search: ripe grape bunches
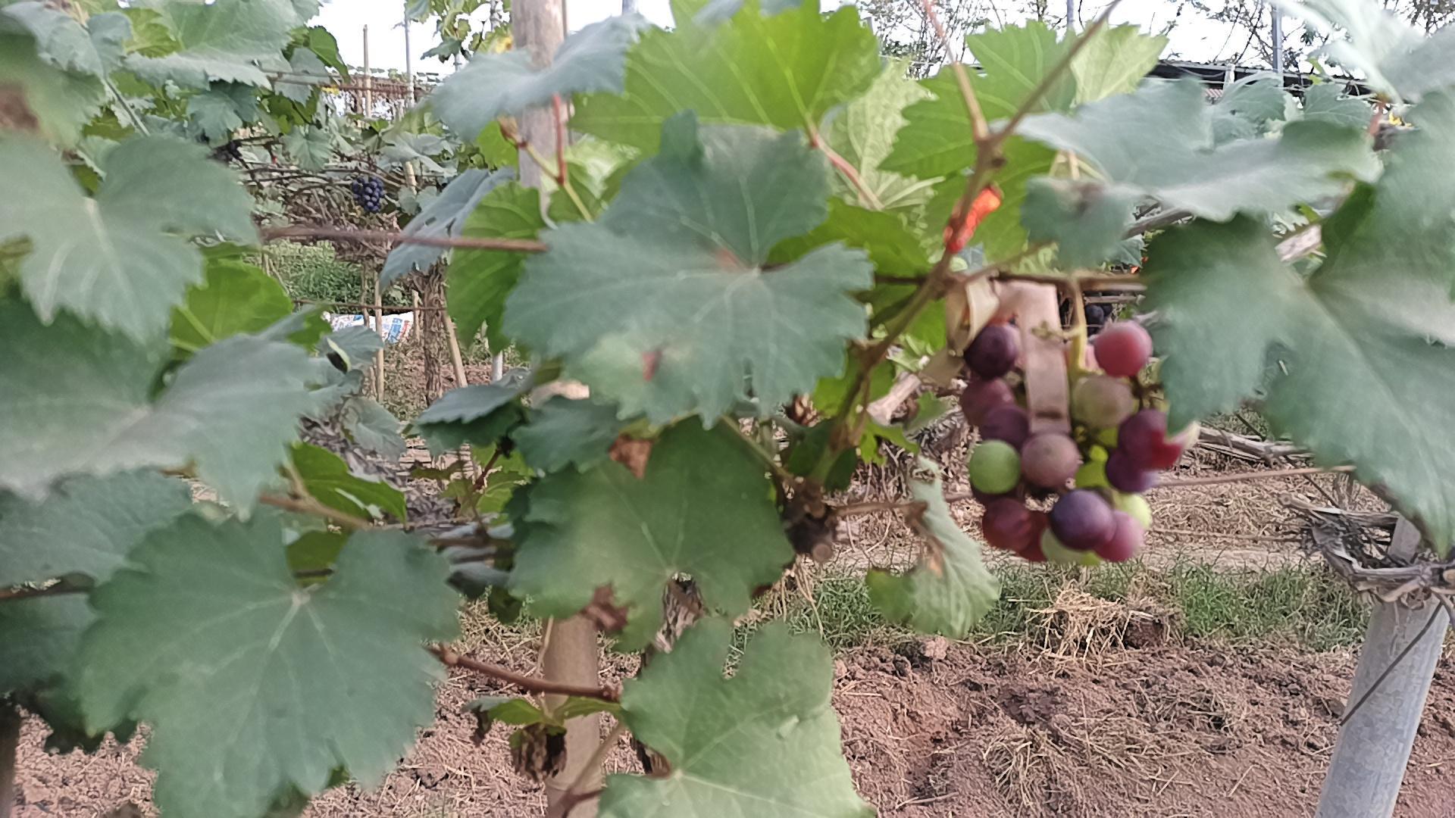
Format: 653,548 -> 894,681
1058,288 -> 1123,332
349,173 -> 386,214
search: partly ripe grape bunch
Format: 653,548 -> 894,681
960,319 -> 1188,562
